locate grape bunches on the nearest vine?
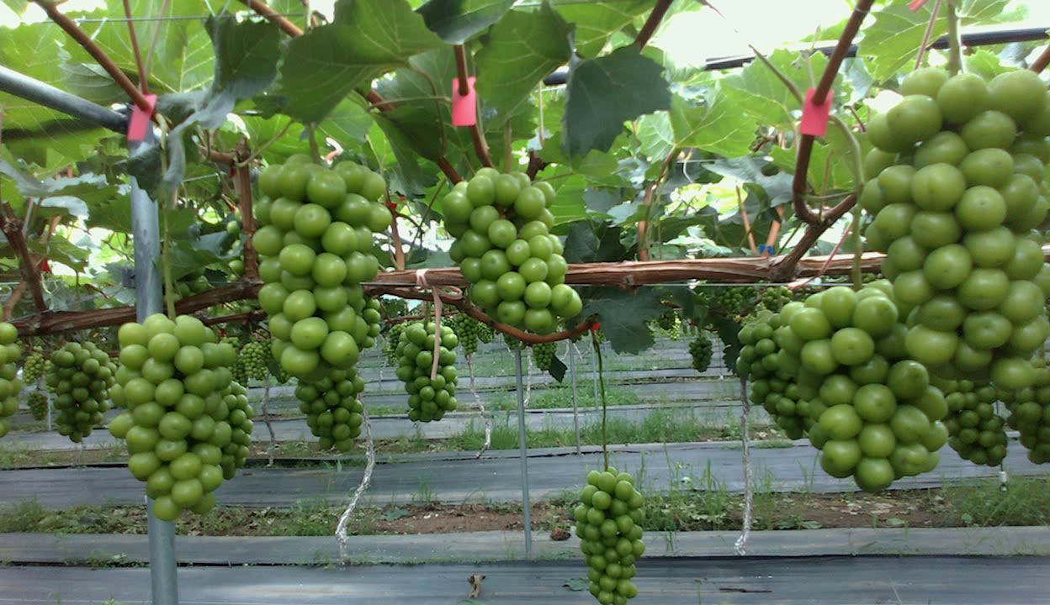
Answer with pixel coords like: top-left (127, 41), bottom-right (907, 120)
top-left (775, 278), bottom-right (949, 493)
top-left (861, 68), bottom-right (1049, 392)
top-left (440, 167), bottom-right (583, 335)
top-left (252, 154), bottom-right (393, 383)
top-left (109, 313), bottom-right (236, 522)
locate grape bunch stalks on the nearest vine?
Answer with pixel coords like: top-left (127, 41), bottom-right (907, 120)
top-left (504, 120), bottom-right (512, 173)
top-left (945, 1), bottom-right (964, 78)
top-left (829, 113), bottom-right (865, 292)
top-left (306, 121), bottom-right (322, 166)
top-left (155, 113), bottom-right (177, 324)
